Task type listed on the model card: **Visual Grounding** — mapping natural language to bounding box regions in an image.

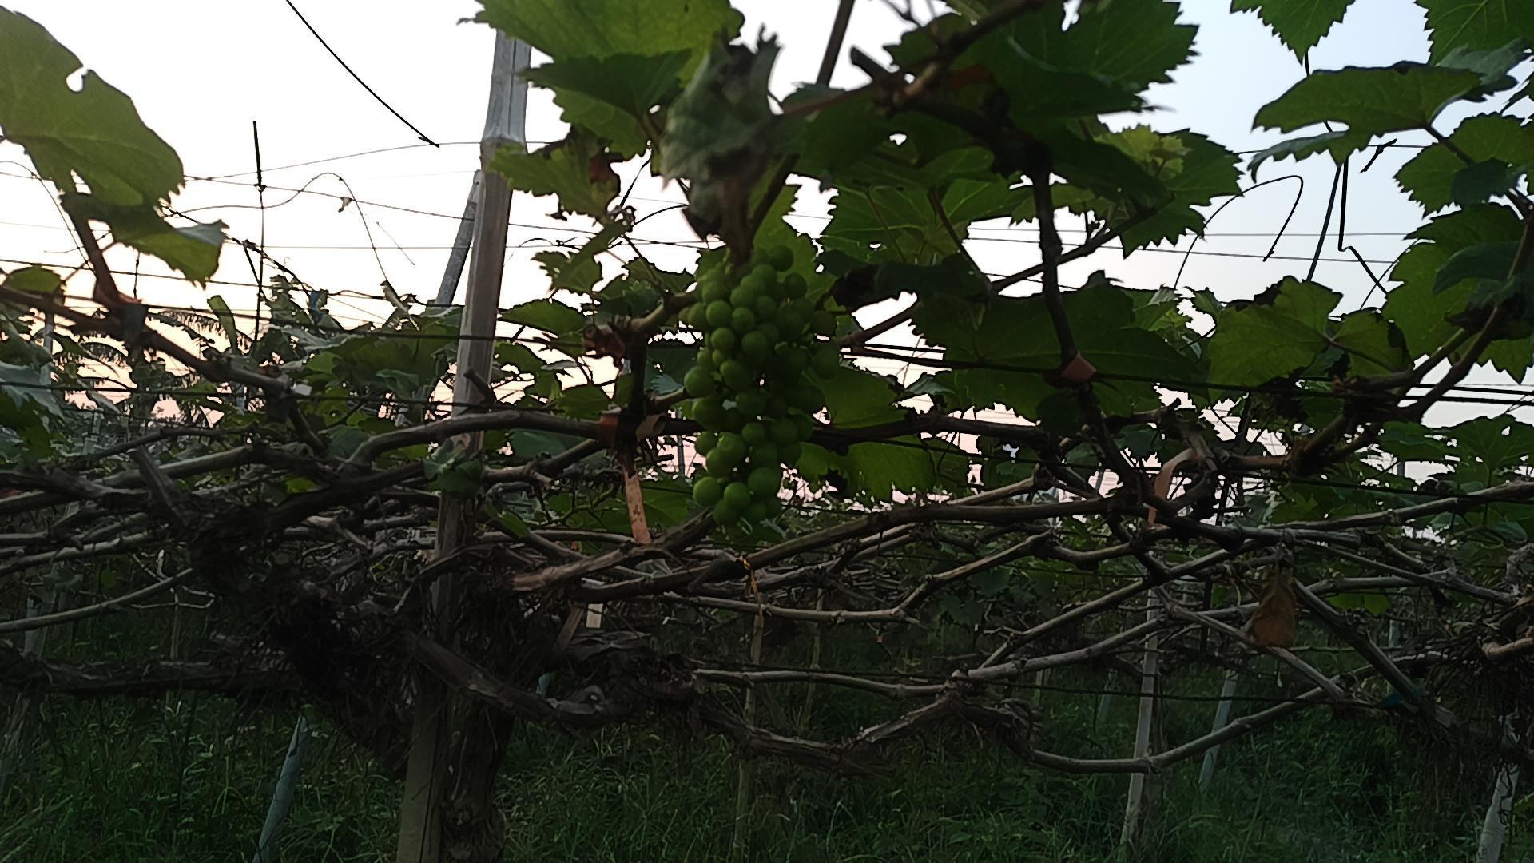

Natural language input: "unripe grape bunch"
[680,245,837,524]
